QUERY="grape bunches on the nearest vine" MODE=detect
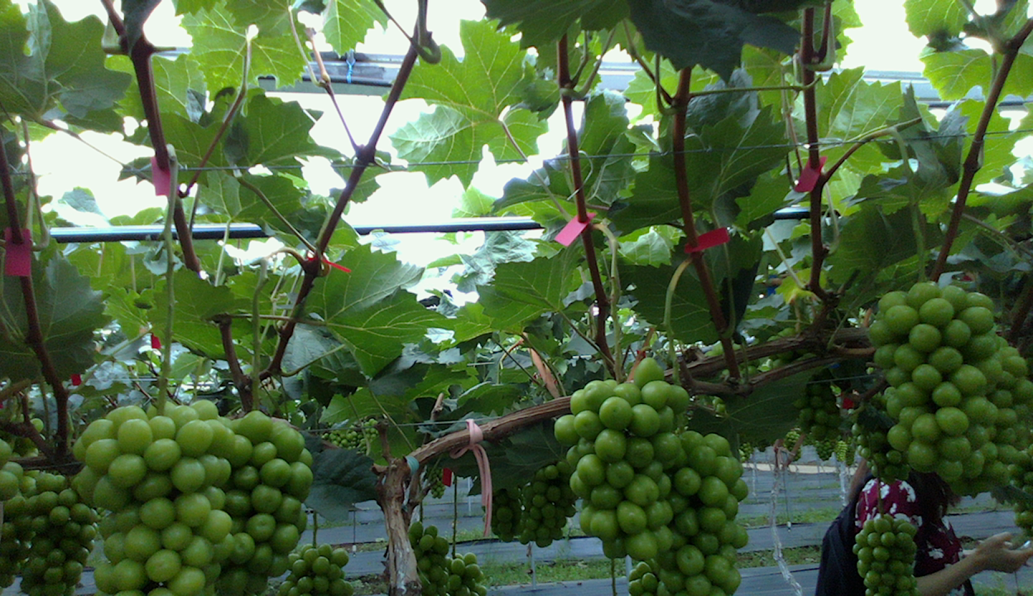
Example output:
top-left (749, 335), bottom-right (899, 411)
top-left (214, 411), bottom-right (313, 595)
top-left (866, 281), bottom-right (1002, 483)
top-left (72, 400), bottom-right (235, 595)
top-left (653, 430), bottom-right (749, 595)
top-left (554, 357), bottom-right (689, 560)
top-left (950, 337), bottom-right (1032, 497)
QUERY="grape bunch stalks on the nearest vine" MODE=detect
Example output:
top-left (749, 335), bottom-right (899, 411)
top-left (867, 118), bottom-right (926, 280)
top-left (157, 144), bottom-right (178, 413)
top-left (252, 247), bottom-right (305, 409)
top-left (663, 255), bottom-right (694, 387)
top-left (598, 223), bottom-right (622, 381)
